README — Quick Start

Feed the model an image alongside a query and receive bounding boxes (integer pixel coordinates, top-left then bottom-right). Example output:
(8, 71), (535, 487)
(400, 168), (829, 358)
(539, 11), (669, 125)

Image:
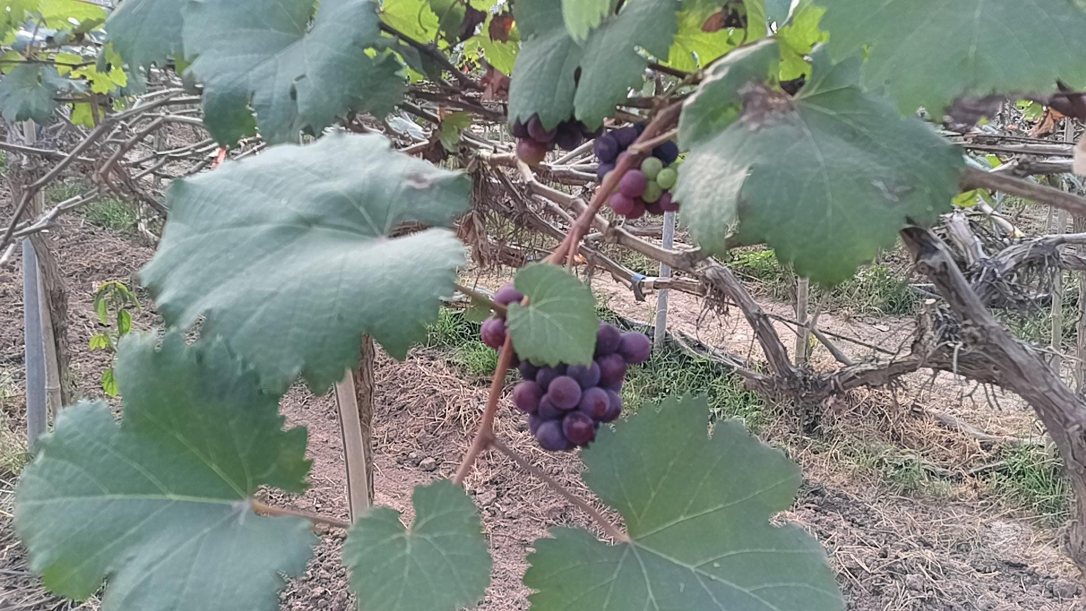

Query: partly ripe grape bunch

(596, 123), (682, 220)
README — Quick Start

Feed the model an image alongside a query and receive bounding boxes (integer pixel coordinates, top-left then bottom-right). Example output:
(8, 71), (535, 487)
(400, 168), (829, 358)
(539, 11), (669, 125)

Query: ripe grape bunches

(480, 272), (652, 453)
(508, 114), (605, 164)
